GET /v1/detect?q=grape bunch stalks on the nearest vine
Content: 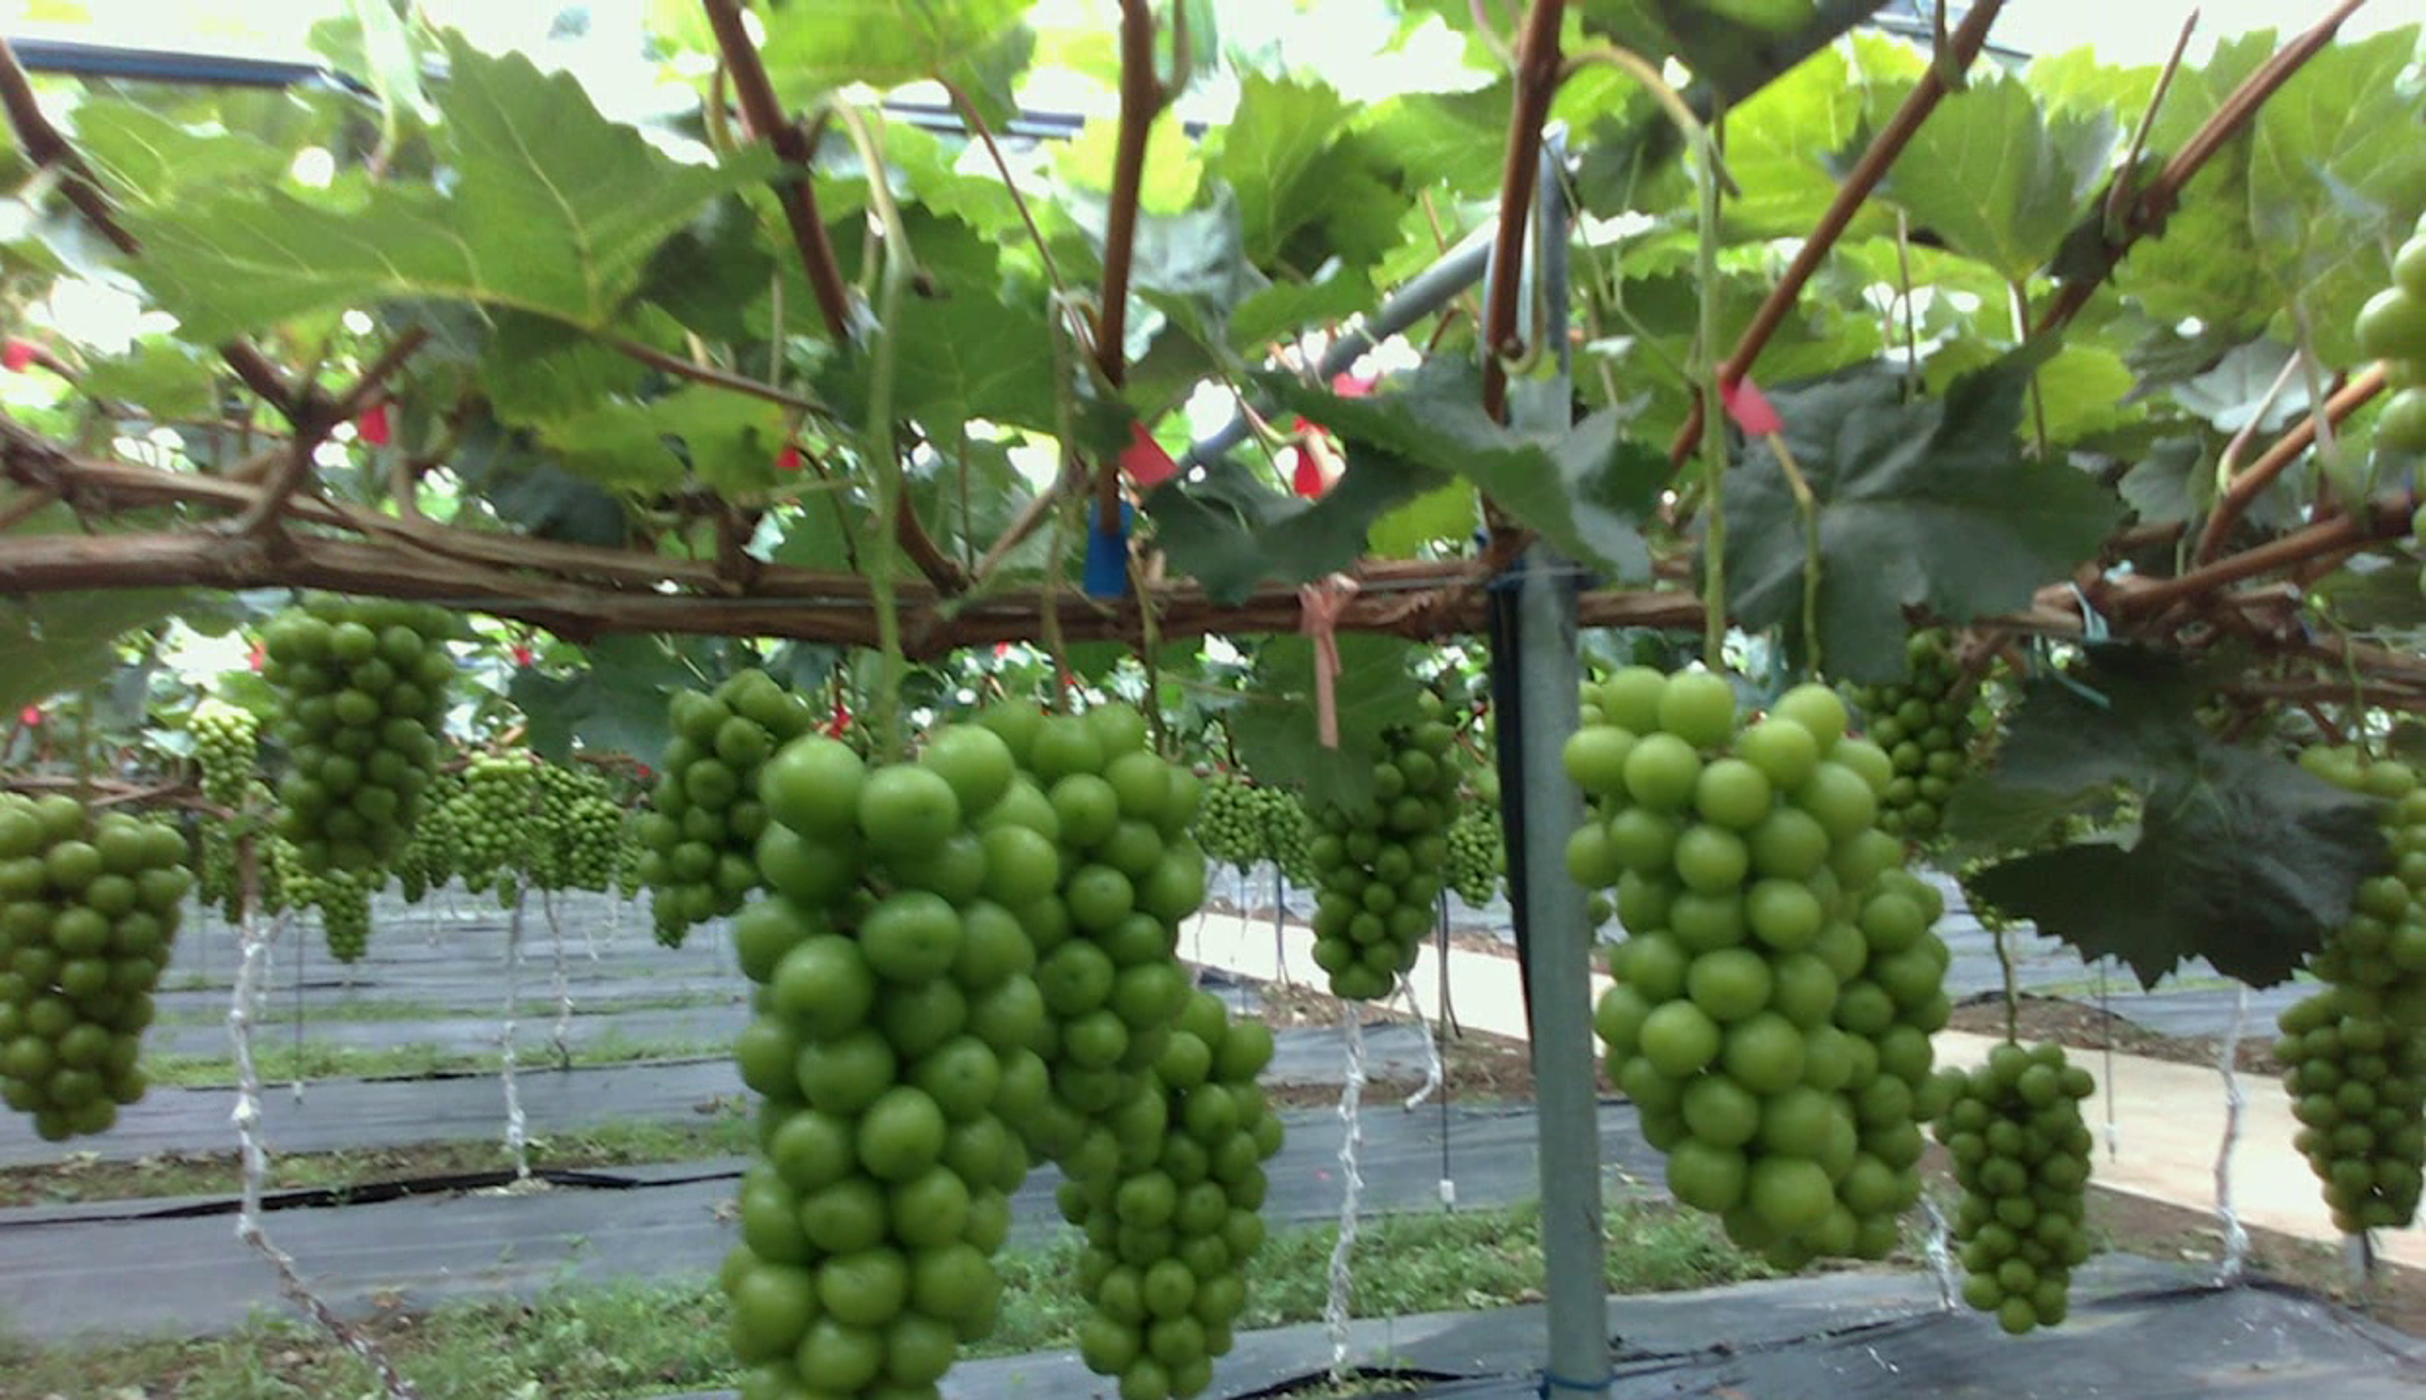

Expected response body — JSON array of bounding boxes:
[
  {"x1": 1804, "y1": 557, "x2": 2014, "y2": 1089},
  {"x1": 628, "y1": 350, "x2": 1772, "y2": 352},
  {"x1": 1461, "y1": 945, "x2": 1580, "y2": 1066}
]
[
  {"x1": 813, "y1": 95, "x2": 937, "y2": 756},
  {"x1": 1773, "y1": 437, "x2": 1816, "y2": 679},
  {"x1": 1038, "y1": 296, "x2": 1073, "y2": 706},
  {"x1": 1580, "y1": 41, "x2": 1740, "y2": 679}
]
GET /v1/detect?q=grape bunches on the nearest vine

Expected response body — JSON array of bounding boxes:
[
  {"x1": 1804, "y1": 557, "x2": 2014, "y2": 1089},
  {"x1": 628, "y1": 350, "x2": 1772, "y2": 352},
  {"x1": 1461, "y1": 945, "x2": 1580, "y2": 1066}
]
[
  {"x1": 1769, "y1": 840, "x2": 1952, "y2": 1277},
  {"x1": 1559, "y1": 665, "x2": 1893, "y2": 1254},
  {"x1": 976, "y1": 694, "x2": 1207, "y2": 1176},
  {"x1": 719, "y1": 719, "x2": 1061, "y2": 1398},
  {"x1": 1056, "y1": 984, "x2": 1283, "y2": 1398}
]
